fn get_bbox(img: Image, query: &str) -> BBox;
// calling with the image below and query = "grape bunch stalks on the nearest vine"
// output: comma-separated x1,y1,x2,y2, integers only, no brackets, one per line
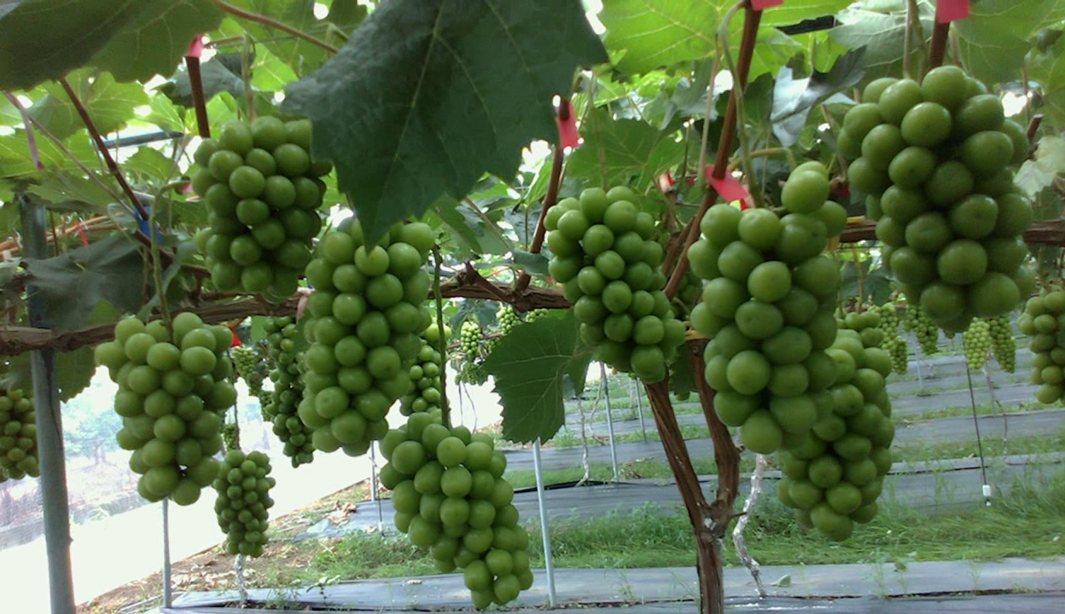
910,0,930,83
205,34,255,121
574,73,608,193
151,181,189,342
431,245,451,427
718,0,763,206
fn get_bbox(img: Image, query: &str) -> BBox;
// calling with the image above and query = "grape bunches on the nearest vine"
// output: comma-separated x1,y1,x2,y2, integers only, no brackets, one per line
688,161,848,455
193,115,332,306
94,312,237,506
835,67,1033,334
777,331,896,543
543,187,685,385
298,217,434,456
379,410,533,611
